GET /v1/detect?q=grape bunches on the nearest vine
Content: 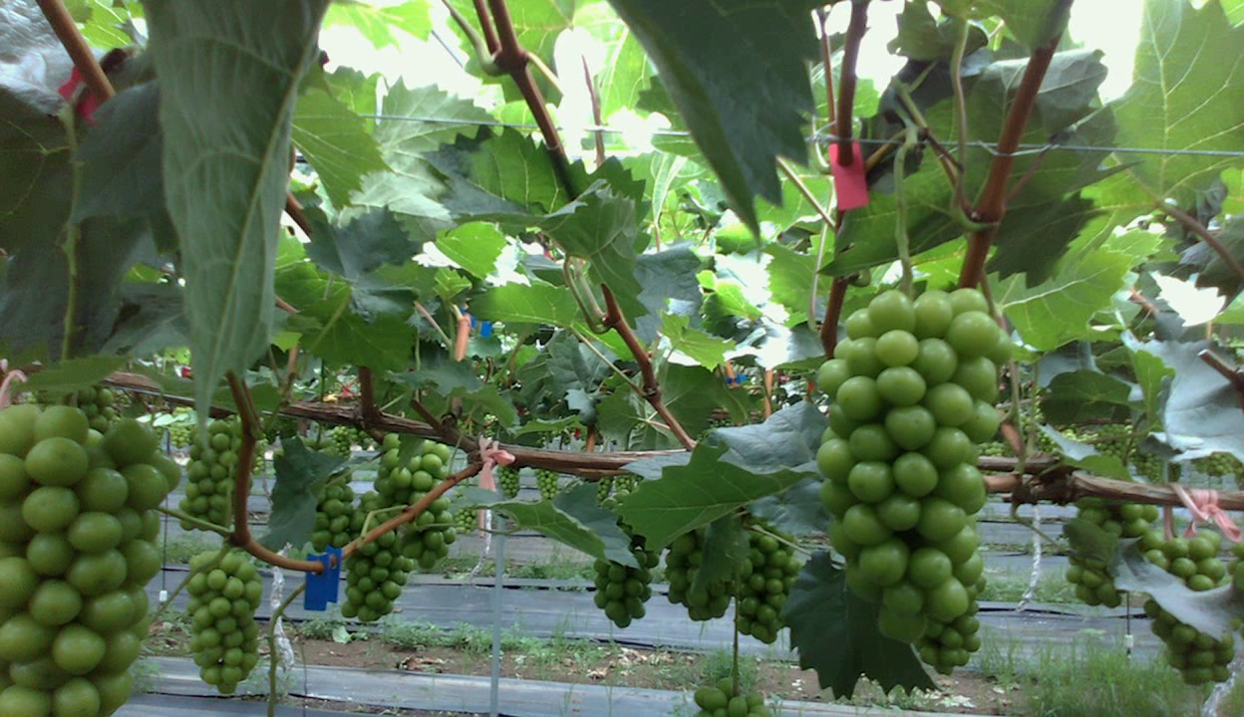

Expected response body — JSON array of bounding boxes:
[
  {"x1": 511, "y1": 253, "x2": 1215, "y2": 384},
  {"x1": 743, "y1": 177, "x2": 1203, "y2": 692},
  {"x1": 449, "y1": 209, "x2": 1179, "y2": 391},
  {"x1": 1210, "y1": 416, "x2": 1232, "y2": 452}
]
[
  {"x1": 815, "y1": 287, "x2": 1012, "y2": 642},
  {"x1": 0, "y1": 403, "x2": 181, "y2": 716}
]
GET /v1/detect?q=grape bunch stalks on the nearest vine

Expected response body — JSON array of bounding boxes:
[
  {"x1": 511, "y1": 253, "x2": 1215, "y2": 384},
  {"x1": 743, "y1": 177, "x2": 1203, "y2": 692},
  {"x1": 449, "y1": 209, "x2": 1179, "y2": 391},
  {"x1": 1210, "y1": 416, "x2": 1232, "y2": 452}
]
[
  {"x1": 56, "y1": 83, "x2": 89, "y2": 406},
  {"x1": 884, "y1": 98, "x2": 917, "y2": 303}
]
